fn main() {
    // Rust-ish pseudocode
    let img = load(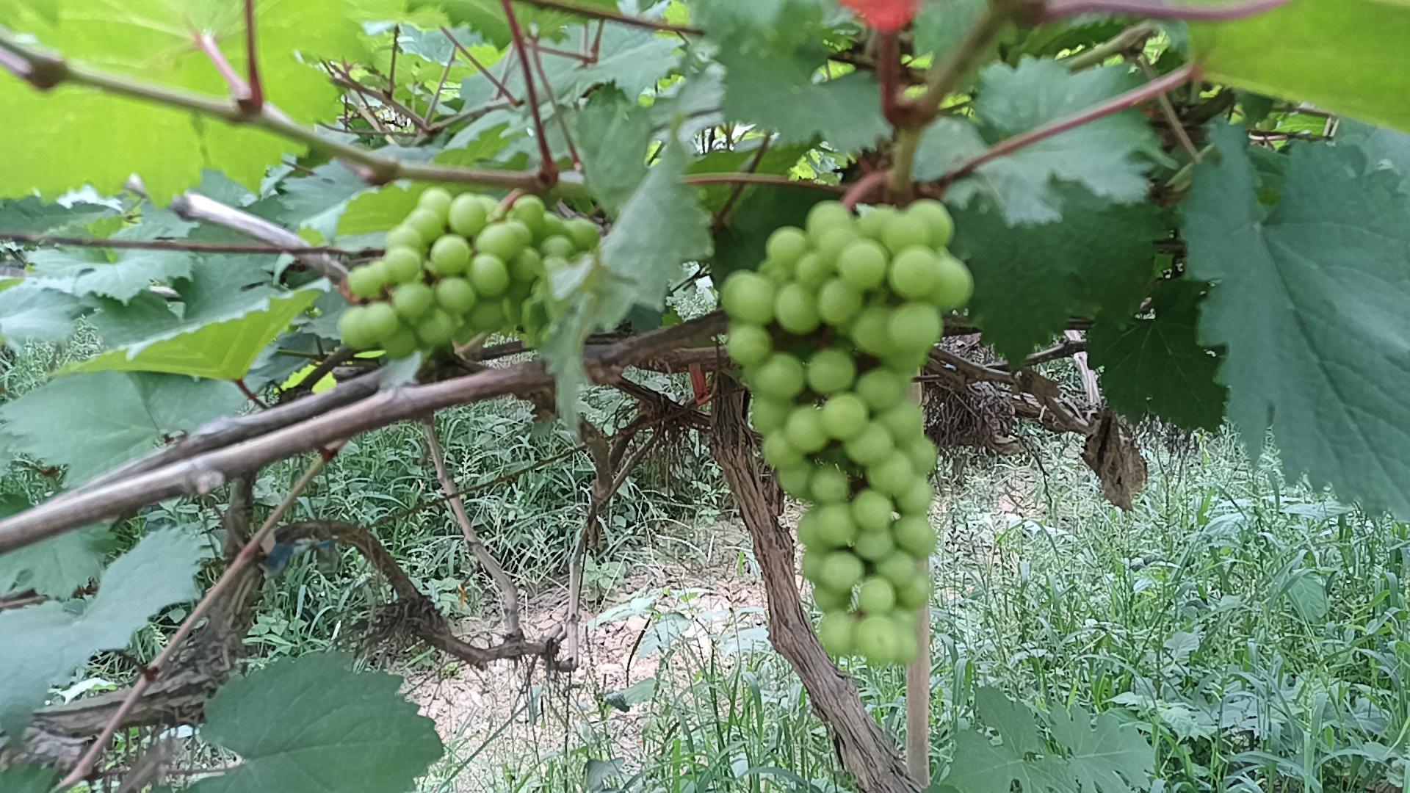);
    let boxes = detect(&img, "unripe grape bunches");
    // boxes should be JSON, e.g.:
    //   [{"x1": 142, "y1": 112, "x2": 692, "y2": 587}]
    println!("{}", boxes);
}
[
  {"x1": 339, "y1": 188, "x2": 599, "y2": 358},
  {"x1": 720, "y1": 200, "x2": 972, "y2": 664}
]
